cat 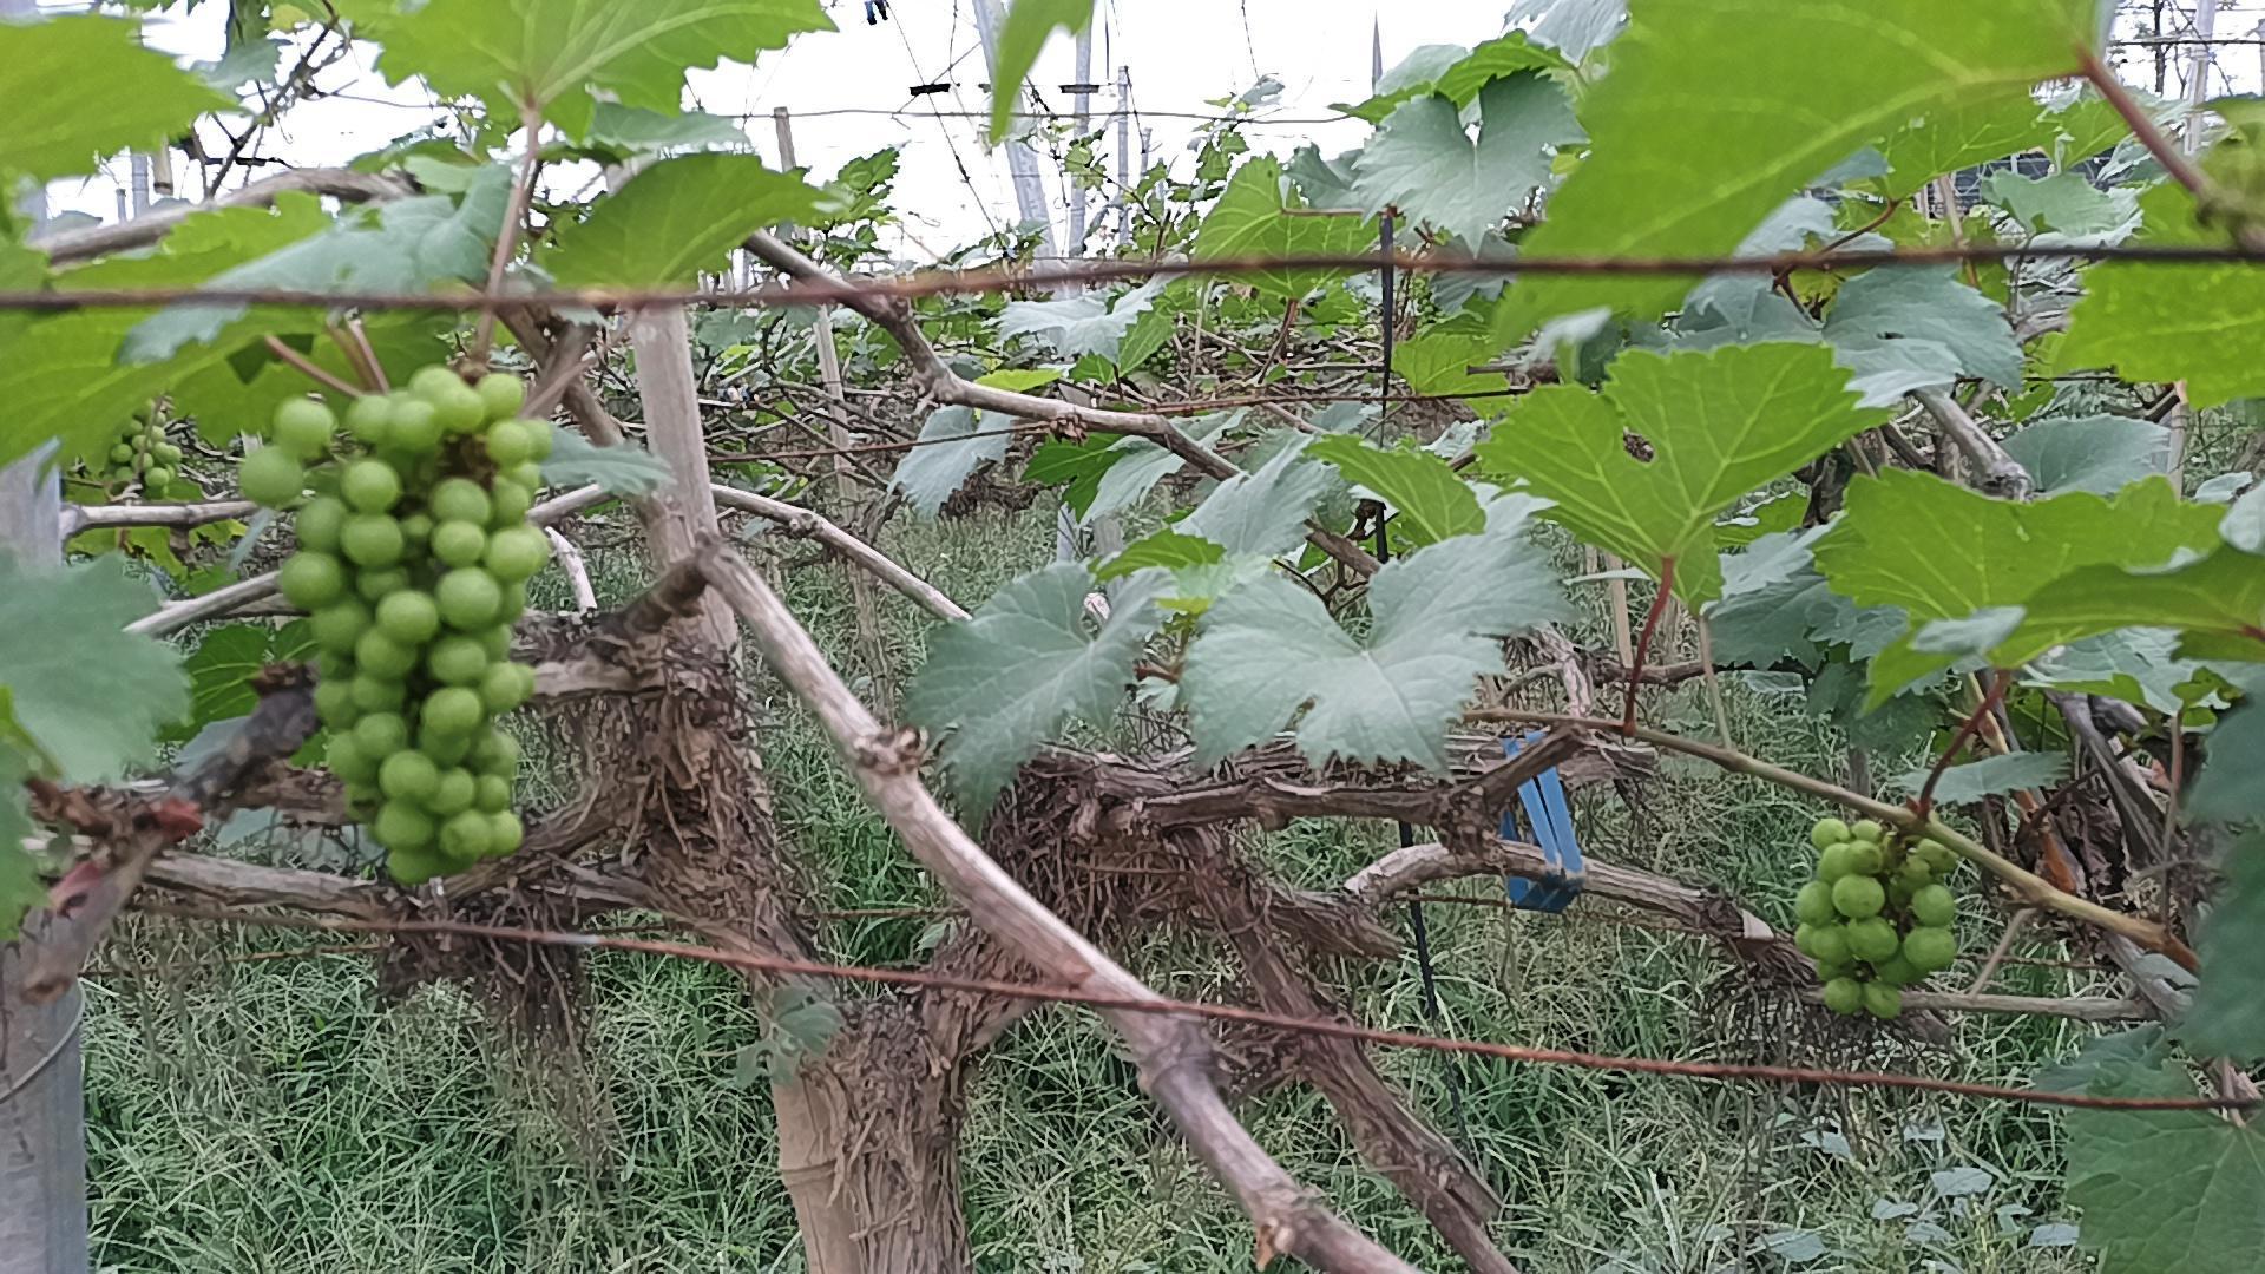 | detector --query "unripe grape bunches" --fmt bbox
[1795,817,1956,1017]
[239,368,550,884]
[111,427,180,497]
